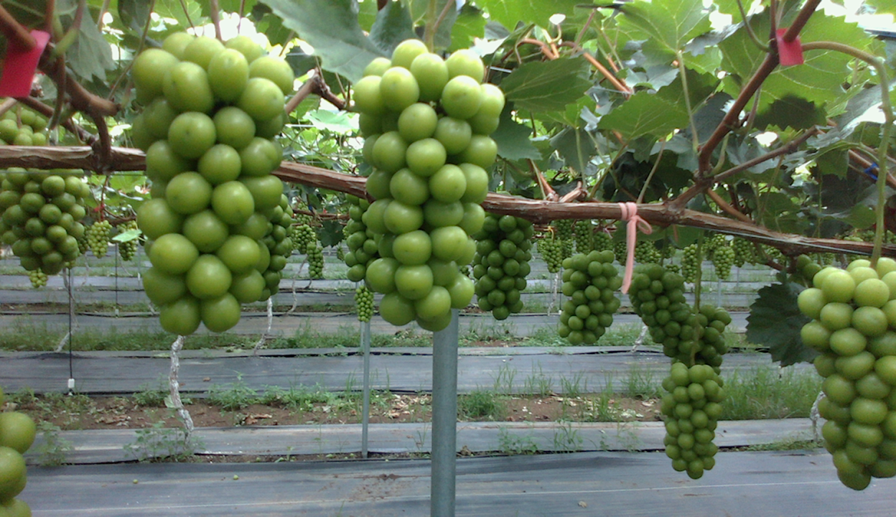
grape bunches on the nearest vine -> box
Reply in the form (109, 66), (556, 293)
(131, 32), (294, 335)
(798, 258), (895, 490)
(355, 39), (505, 333)
(0, 384), (36, 516)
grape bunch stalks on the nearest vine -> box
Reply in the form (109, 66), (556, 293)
(424, 1), (437, 54)
(210, 0), (223, 43)
(801, 42), (893, 270)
